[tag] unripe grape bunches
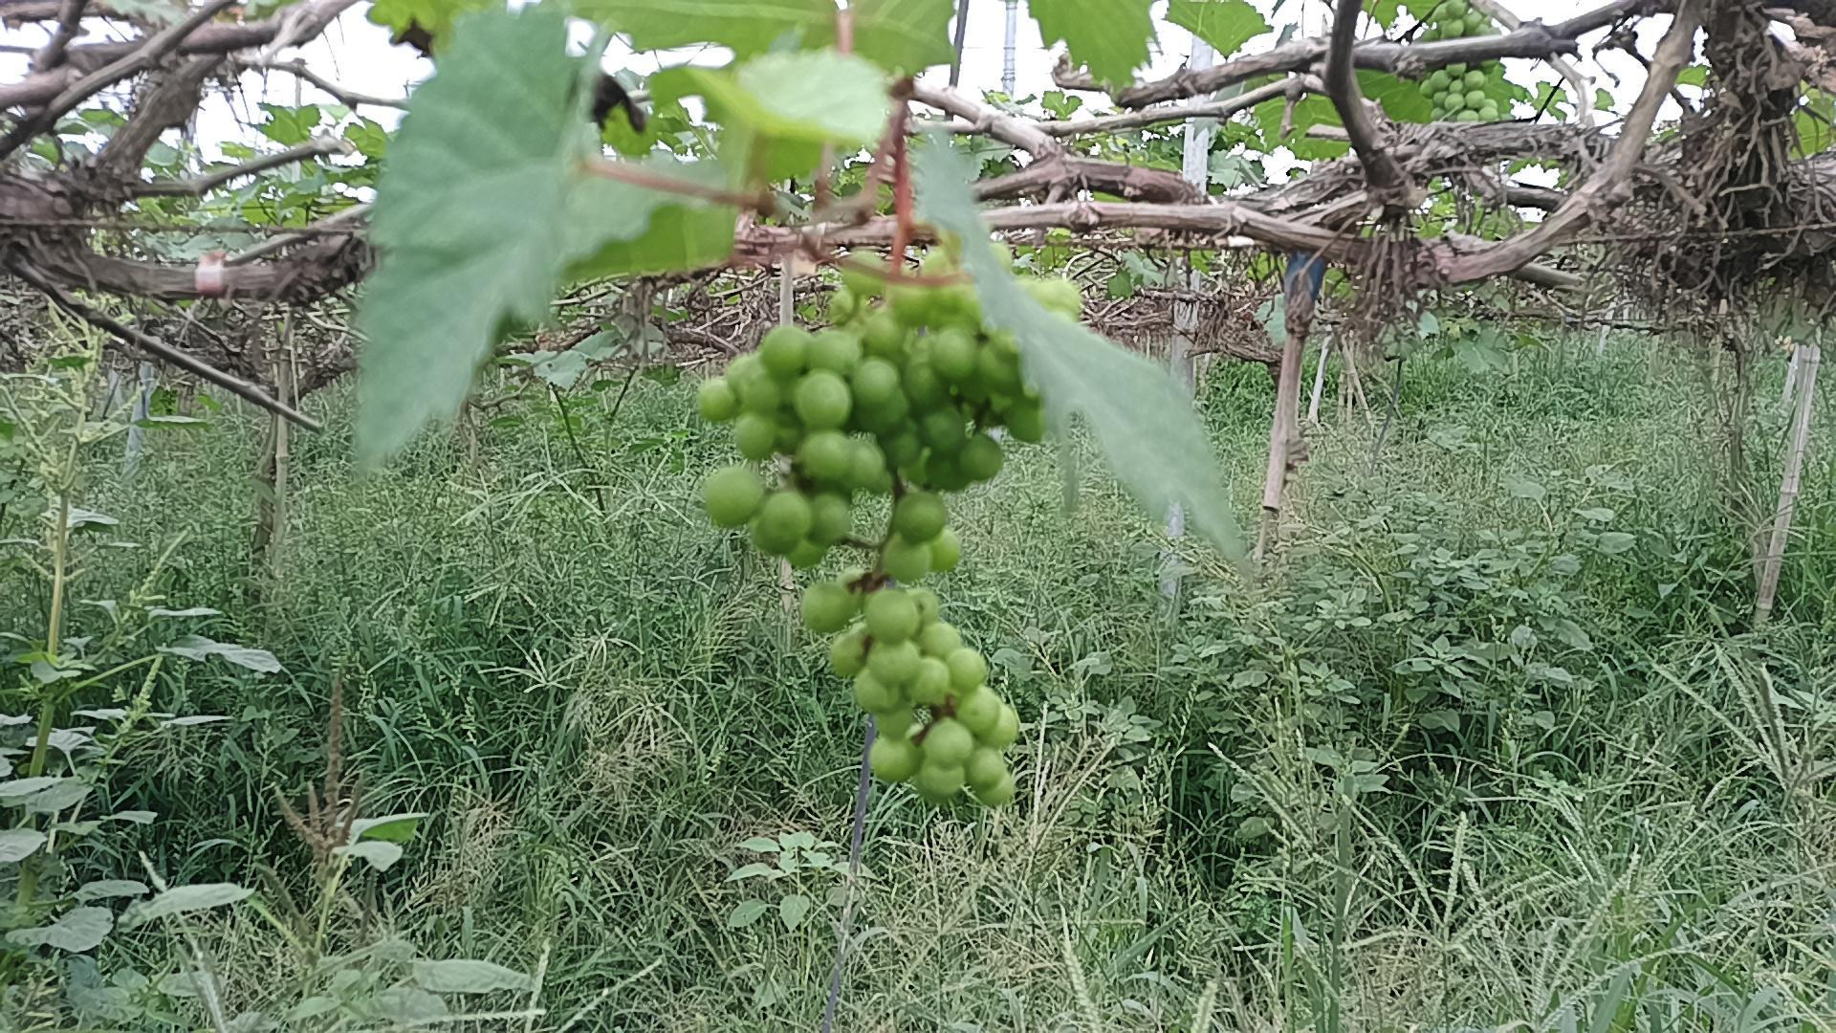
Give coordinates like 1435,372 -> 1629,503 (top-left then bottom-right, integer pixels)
1415,0 -> 1504,122
697,224 -> 1084,803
